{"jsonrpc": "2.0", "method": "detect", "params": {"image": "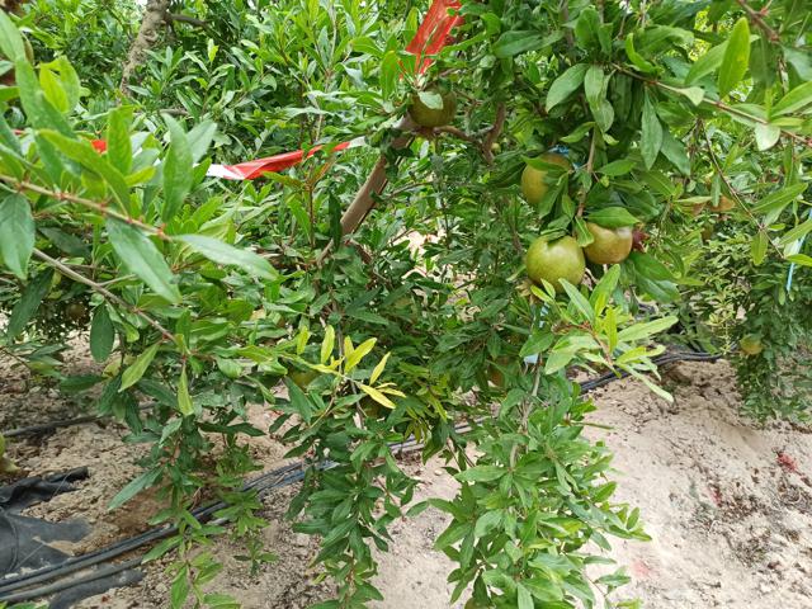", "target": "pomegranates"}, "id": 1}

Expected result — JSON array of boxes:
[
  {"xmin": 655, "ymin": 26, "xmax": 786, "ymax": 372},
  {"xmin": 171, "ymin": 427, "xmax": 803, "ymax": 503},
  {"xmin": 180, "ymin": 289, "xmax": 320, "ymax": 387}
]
[
  {"xmin": 740, "ymin": 332, "xmax": 764, "ymax": 355},
  {"xmin": 409, "ymin": 84, "xmax": 458, "ymax": 129},
  {"xmin": 519, "ymin": 152, "xmax": 576, "ymax": 208},
  {"xmin": 581, "ymin": 222, "xmax": 633, "ymax": 266},
  {"xmin": 288, "ymin": 368, "xmax": 318, "ymax": 390},
  {"xmin": 525, "ymin": 235, "xmax": 586, "ymax": 294}
]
